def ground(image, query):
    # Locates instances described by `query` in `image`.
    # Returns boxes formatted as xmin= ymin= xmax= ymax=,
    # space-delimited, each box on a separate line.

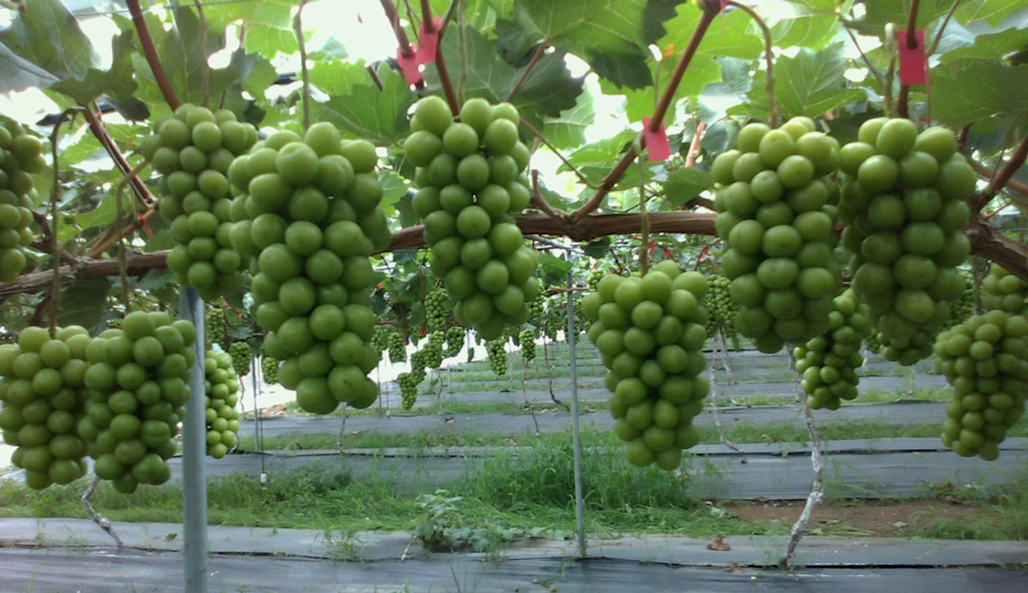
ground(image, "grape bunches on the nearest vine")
xmin=1 ymin=325 xmax=91 ymax=492
xmin=228 ymin=121 xmax=394 ymax=416
xmin=145 ymin=104 xmax=255 ymax=306
xmin=583 ymin=262 xmax=711 ymax=471
xmin=403 ymin=97 xmax=540 ymax=343
xmin=2 ymin=114 xmax=46 ymax=281
xmin=713 ymin=117 xmax=841 ymax=353
xmin=82 ymin=311 xmax=196 ymax=494
xmin=836 ymin=118 xmax=977 ymax=339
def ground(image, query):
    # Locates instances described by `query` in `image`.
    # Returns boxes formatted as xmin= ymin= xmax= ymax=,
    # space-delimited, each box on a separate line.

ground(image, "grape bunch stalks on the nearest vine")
xmin=456 ymin=1 xmax=468 ymax=105
xmin=196 ymin=1 xmax=211 ymax=105
xmin=633 ymin=133 xmax=650 ymax=274
xmin=881 ymin=23 xmax=896 ymax=116
xmin=294 ymin=0 xmax=311 ymax=127
xmin=116 ymin=162 xmax=146 ymax=311
xmin=736 ymin=2 xmax=778 ymax=128
xmin=49 ymin=105 xmax=85 ymax=338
